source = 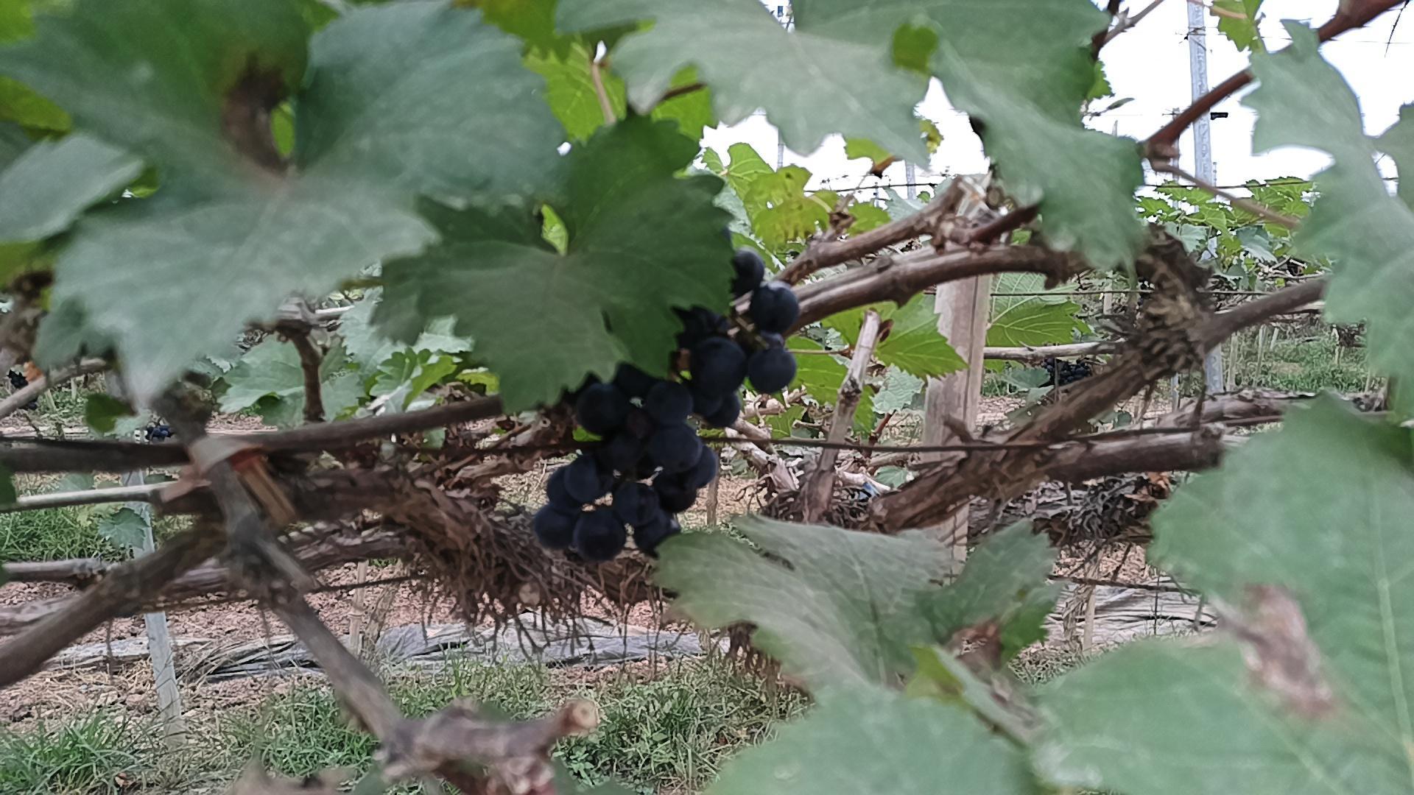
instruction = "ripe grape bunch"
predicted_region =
[532,250,798,562]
